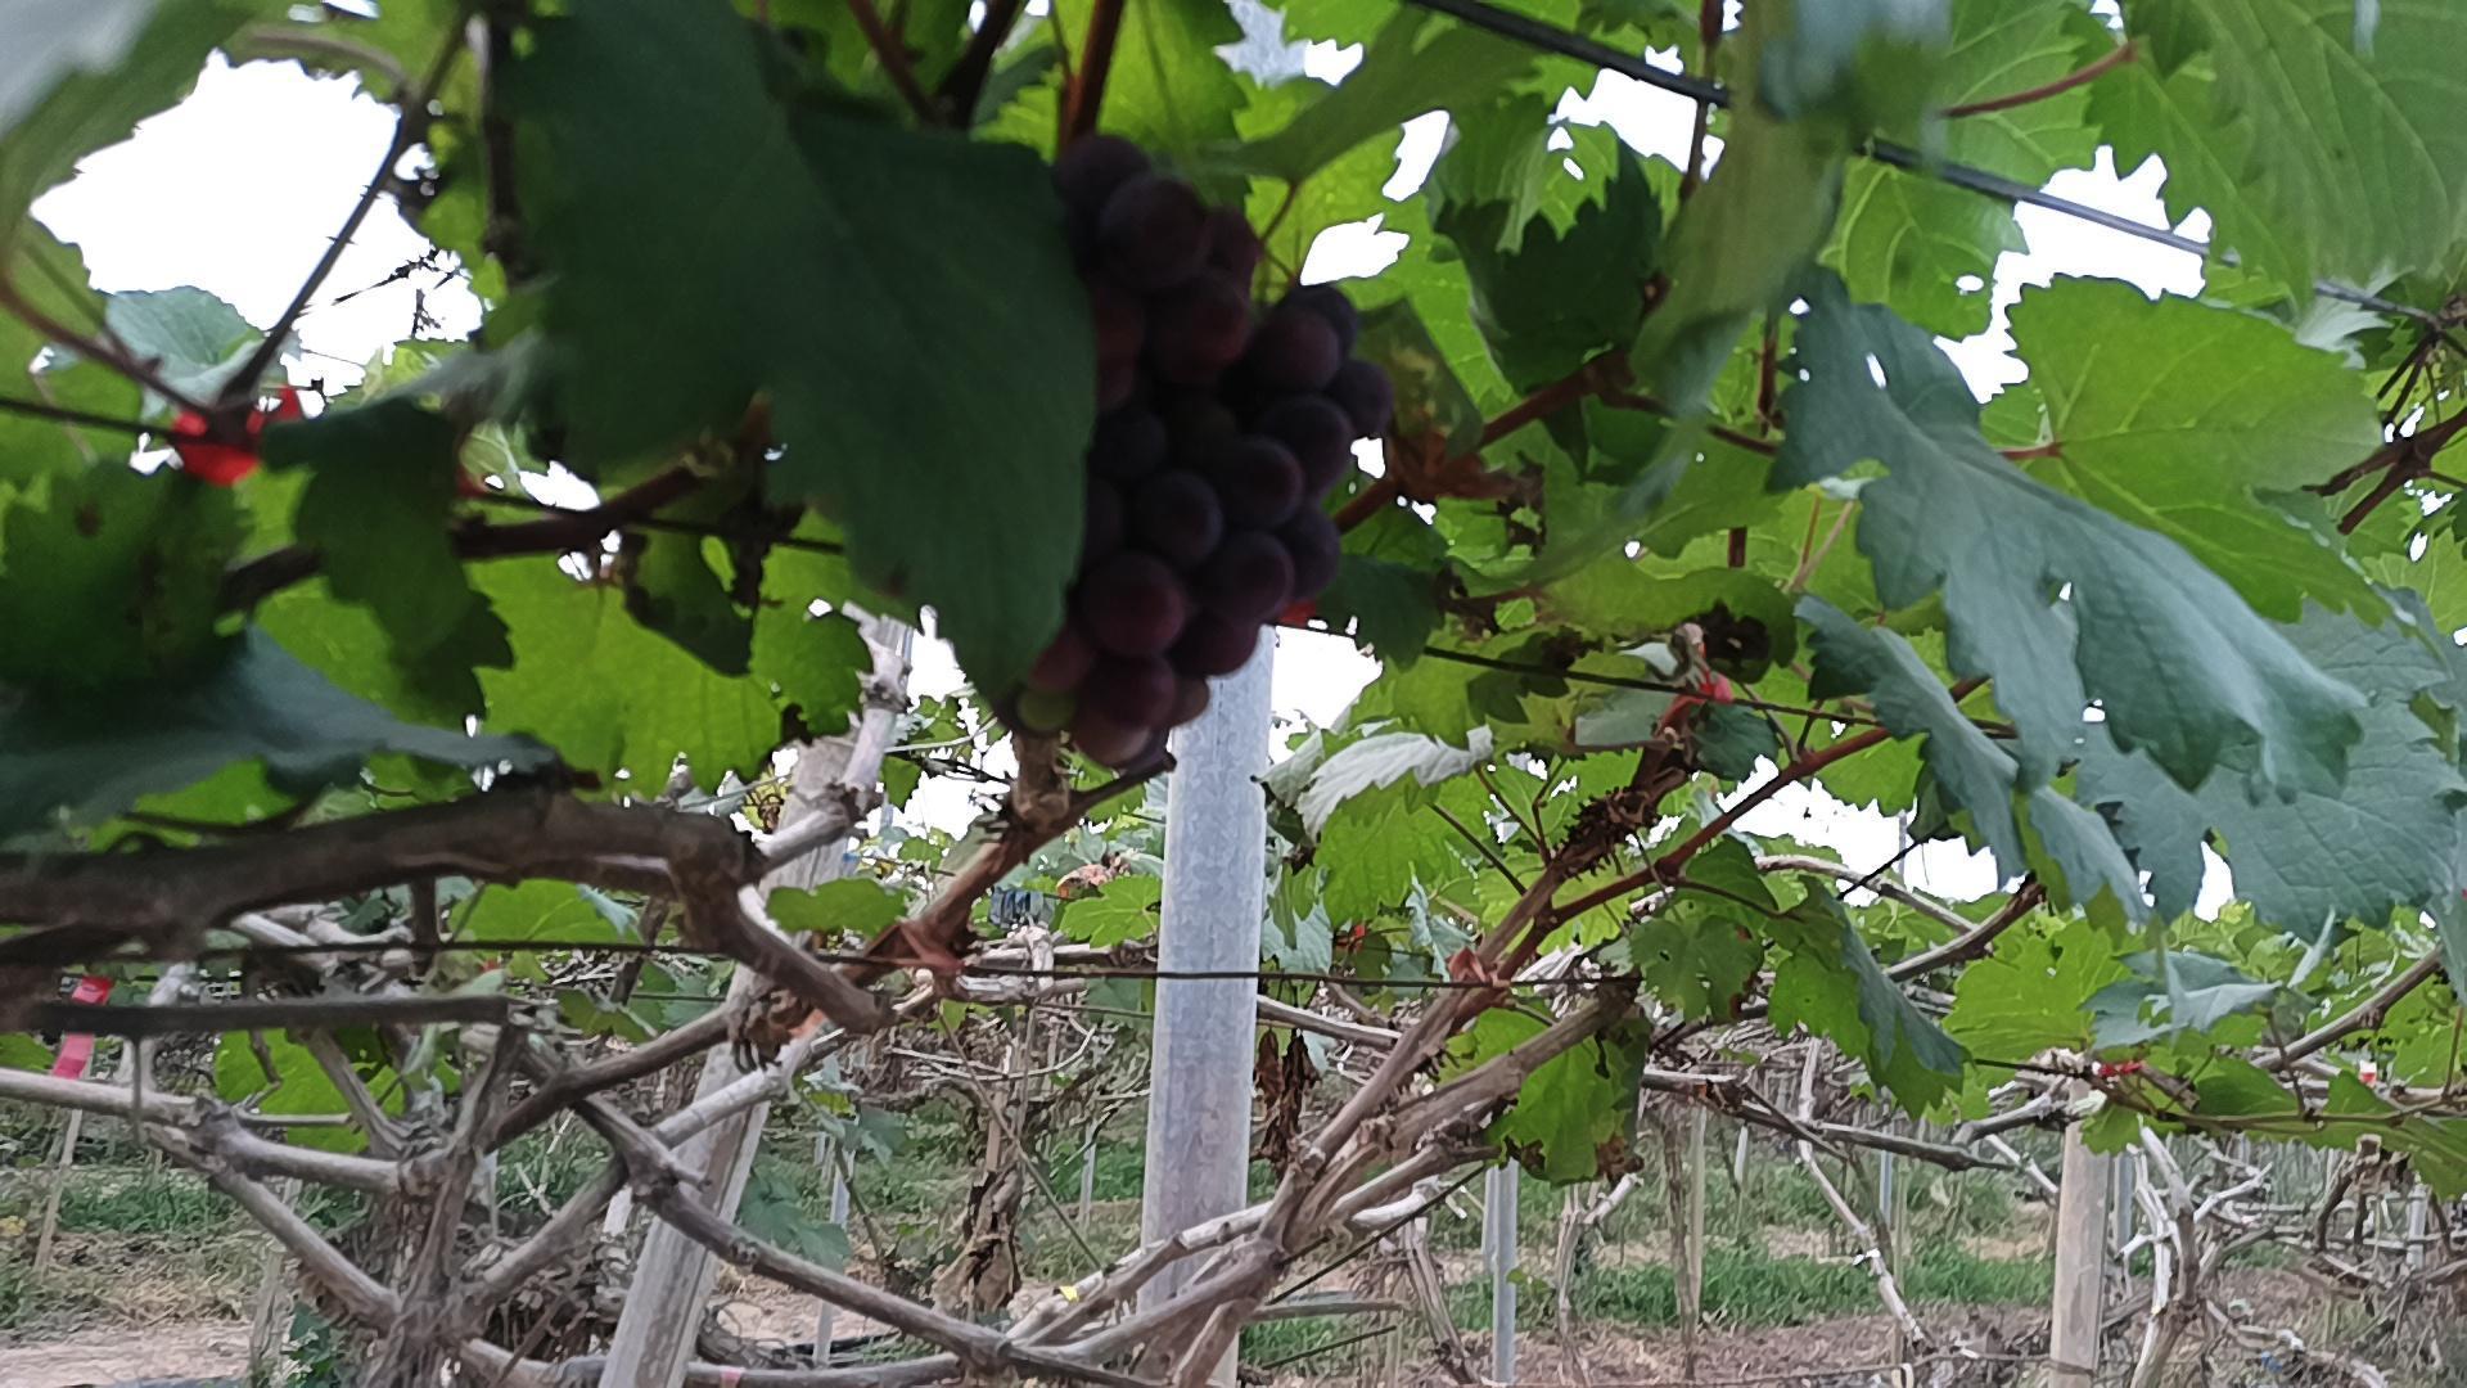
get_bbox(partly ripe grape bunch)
[1014,135,1392,766]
